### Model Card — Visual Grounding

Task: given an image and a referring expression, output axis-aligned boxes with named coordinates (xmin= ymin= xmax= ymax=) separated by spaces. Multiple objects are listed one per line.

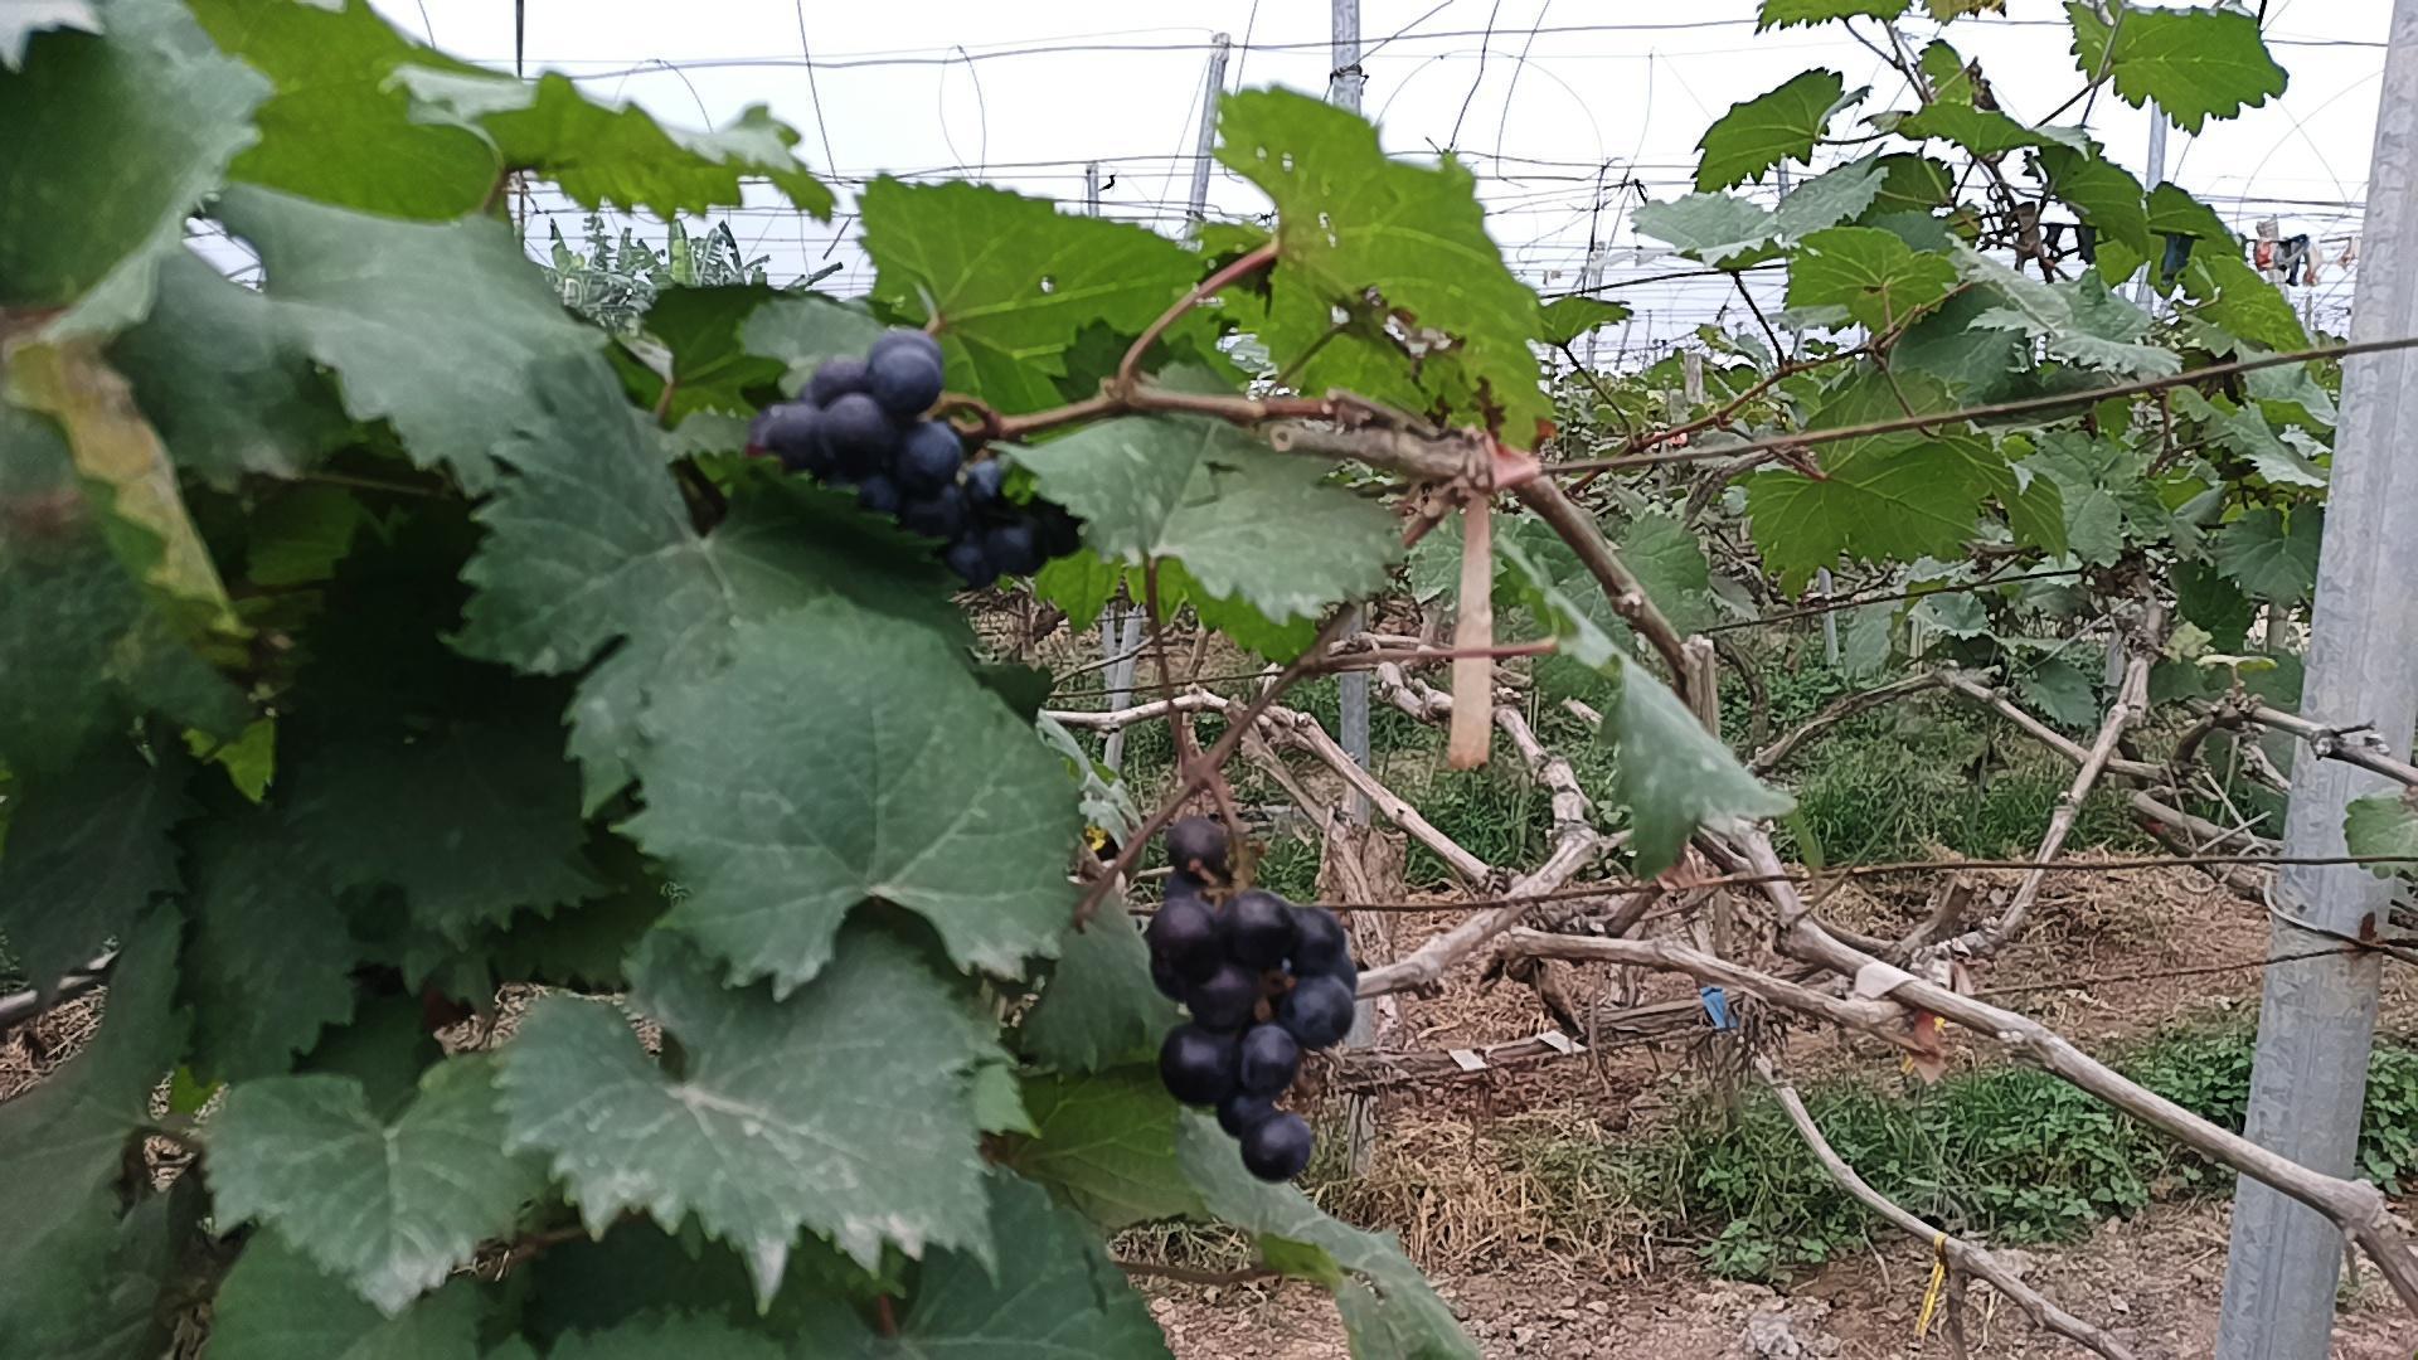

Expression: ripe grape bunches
xmin=1144 ymin=816 xmax=1356 ymax=1181
xmin=749 ymin=330 xmax=1079 ymax=588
